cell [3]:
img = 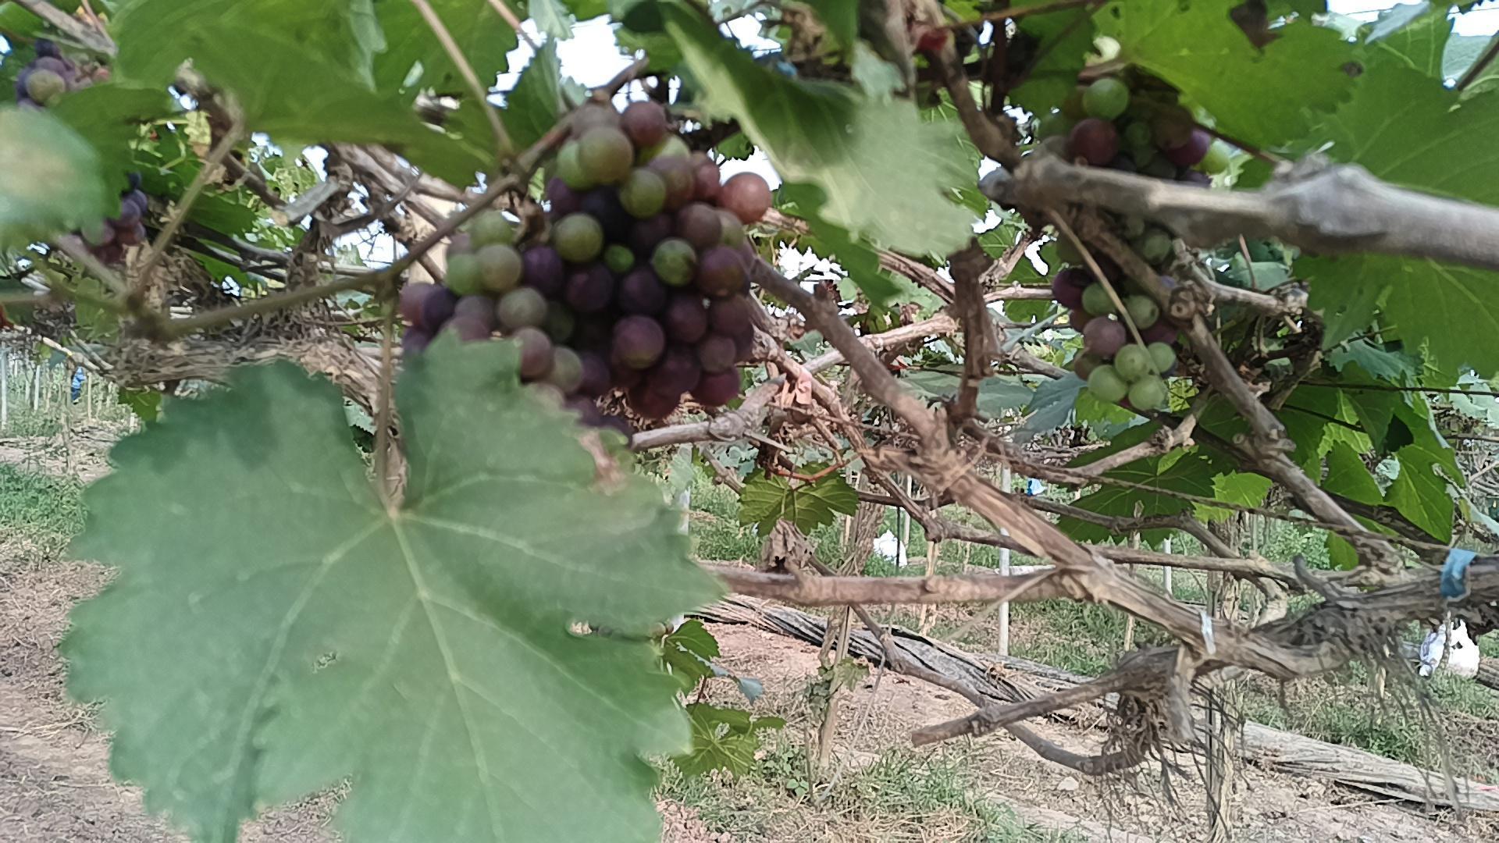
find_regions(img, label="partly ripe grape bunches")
[1036,76,1232,411]
[400,99,771,438]
[15,39,148,263]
